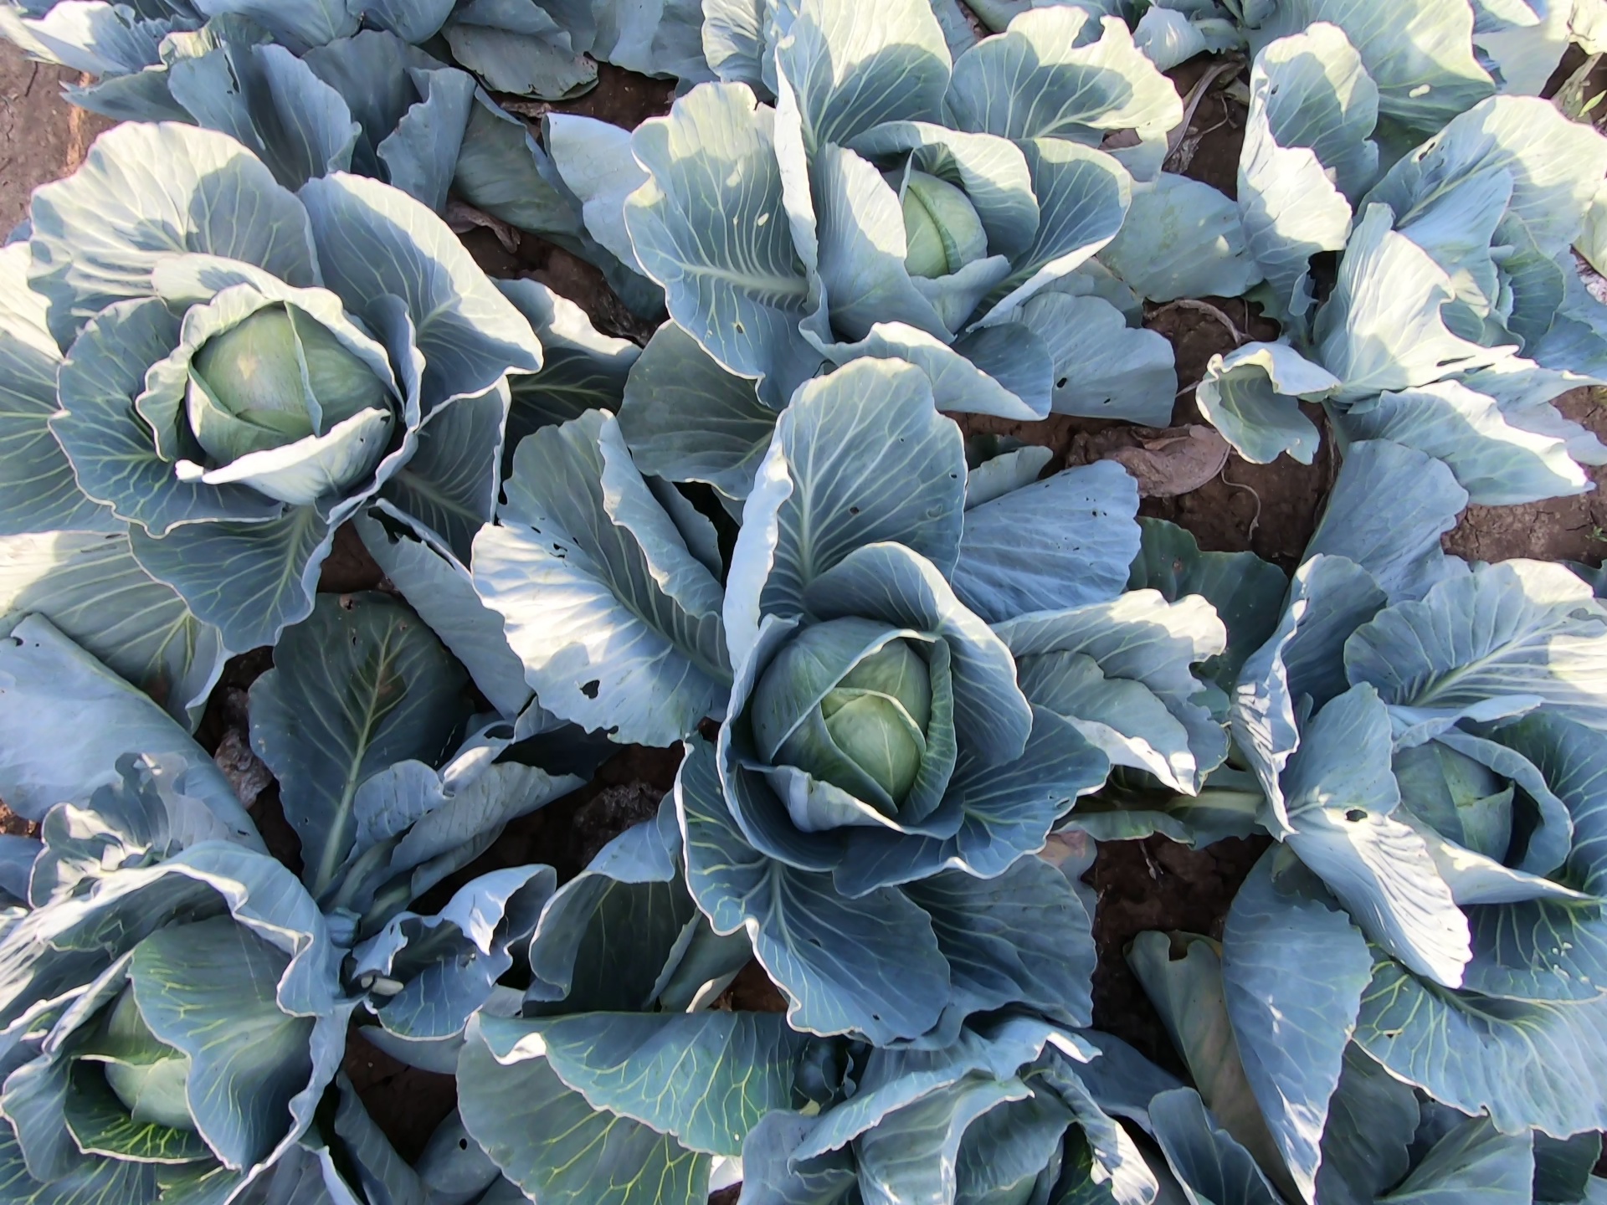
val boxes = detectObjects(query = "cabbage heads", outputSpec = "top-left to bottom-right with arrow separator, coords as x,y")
875,1082 -> 1064,1202
1368,728 -> 1512,891
768,628 -> 942,808
850,168 -> 989,337
1377,246 -> 1516,375
109,934 -> 295,1120
184,300 -> 388,463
